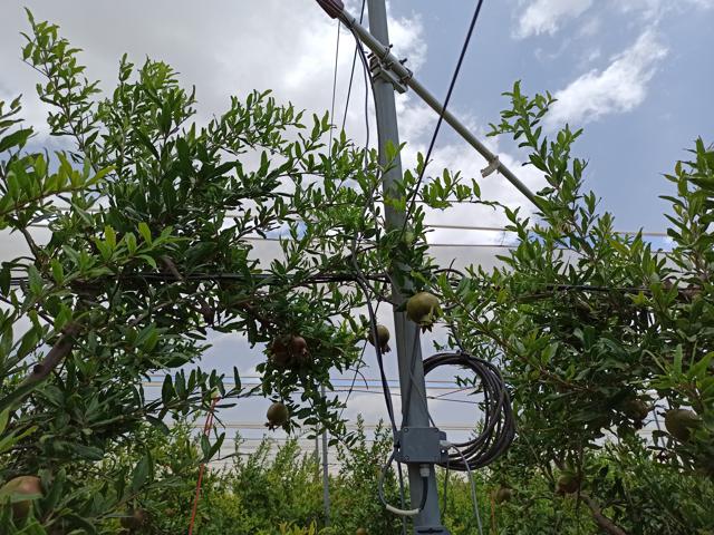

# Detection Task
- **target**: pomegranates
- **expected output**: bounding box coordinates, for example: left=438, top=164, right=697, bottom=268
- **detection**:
left=623, top=400, right=649, bottom=430
left=554, top=475, right=580, bottom=500
left=495, top=487, right=512, bottom=504
left=664, top=408, right=702, bottom=440
left=367, top=324, right=392, bottom=356
left=291, top=337, right=310, bottom=357
left=406, top=291, right=441, bottom=334
left=0, top=475, right=45, bottom=517
left=119, top=507, right=145, bottom=535
left=264, top=401, right=288, bottom=431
